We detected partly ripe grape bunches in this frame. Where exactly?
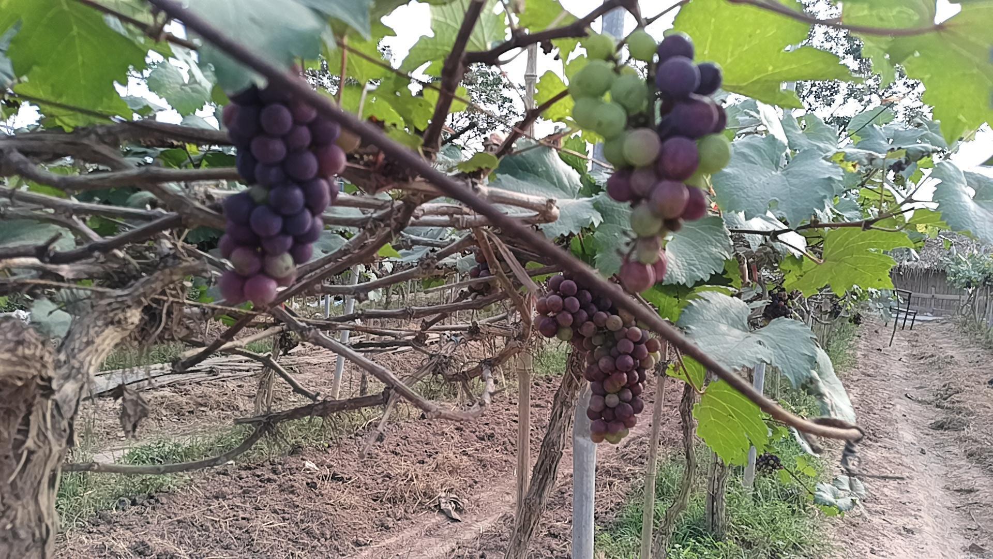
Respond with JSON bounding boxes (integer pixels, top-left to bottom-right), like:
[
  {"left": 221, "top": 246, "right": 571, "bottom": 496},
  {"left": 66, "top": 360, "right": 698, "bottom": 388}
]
[
  {"left": 218, "top": 86, "right": 362, "bottom": 306},
  {"left": 535, "top": 273, "right": 658, "bottom": 444},
  {"left": 565, "top": 29, "right": 732, "bottom": 290},
  {"left": 468, "top": 246, "right": 513, "bottom": 313}
]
